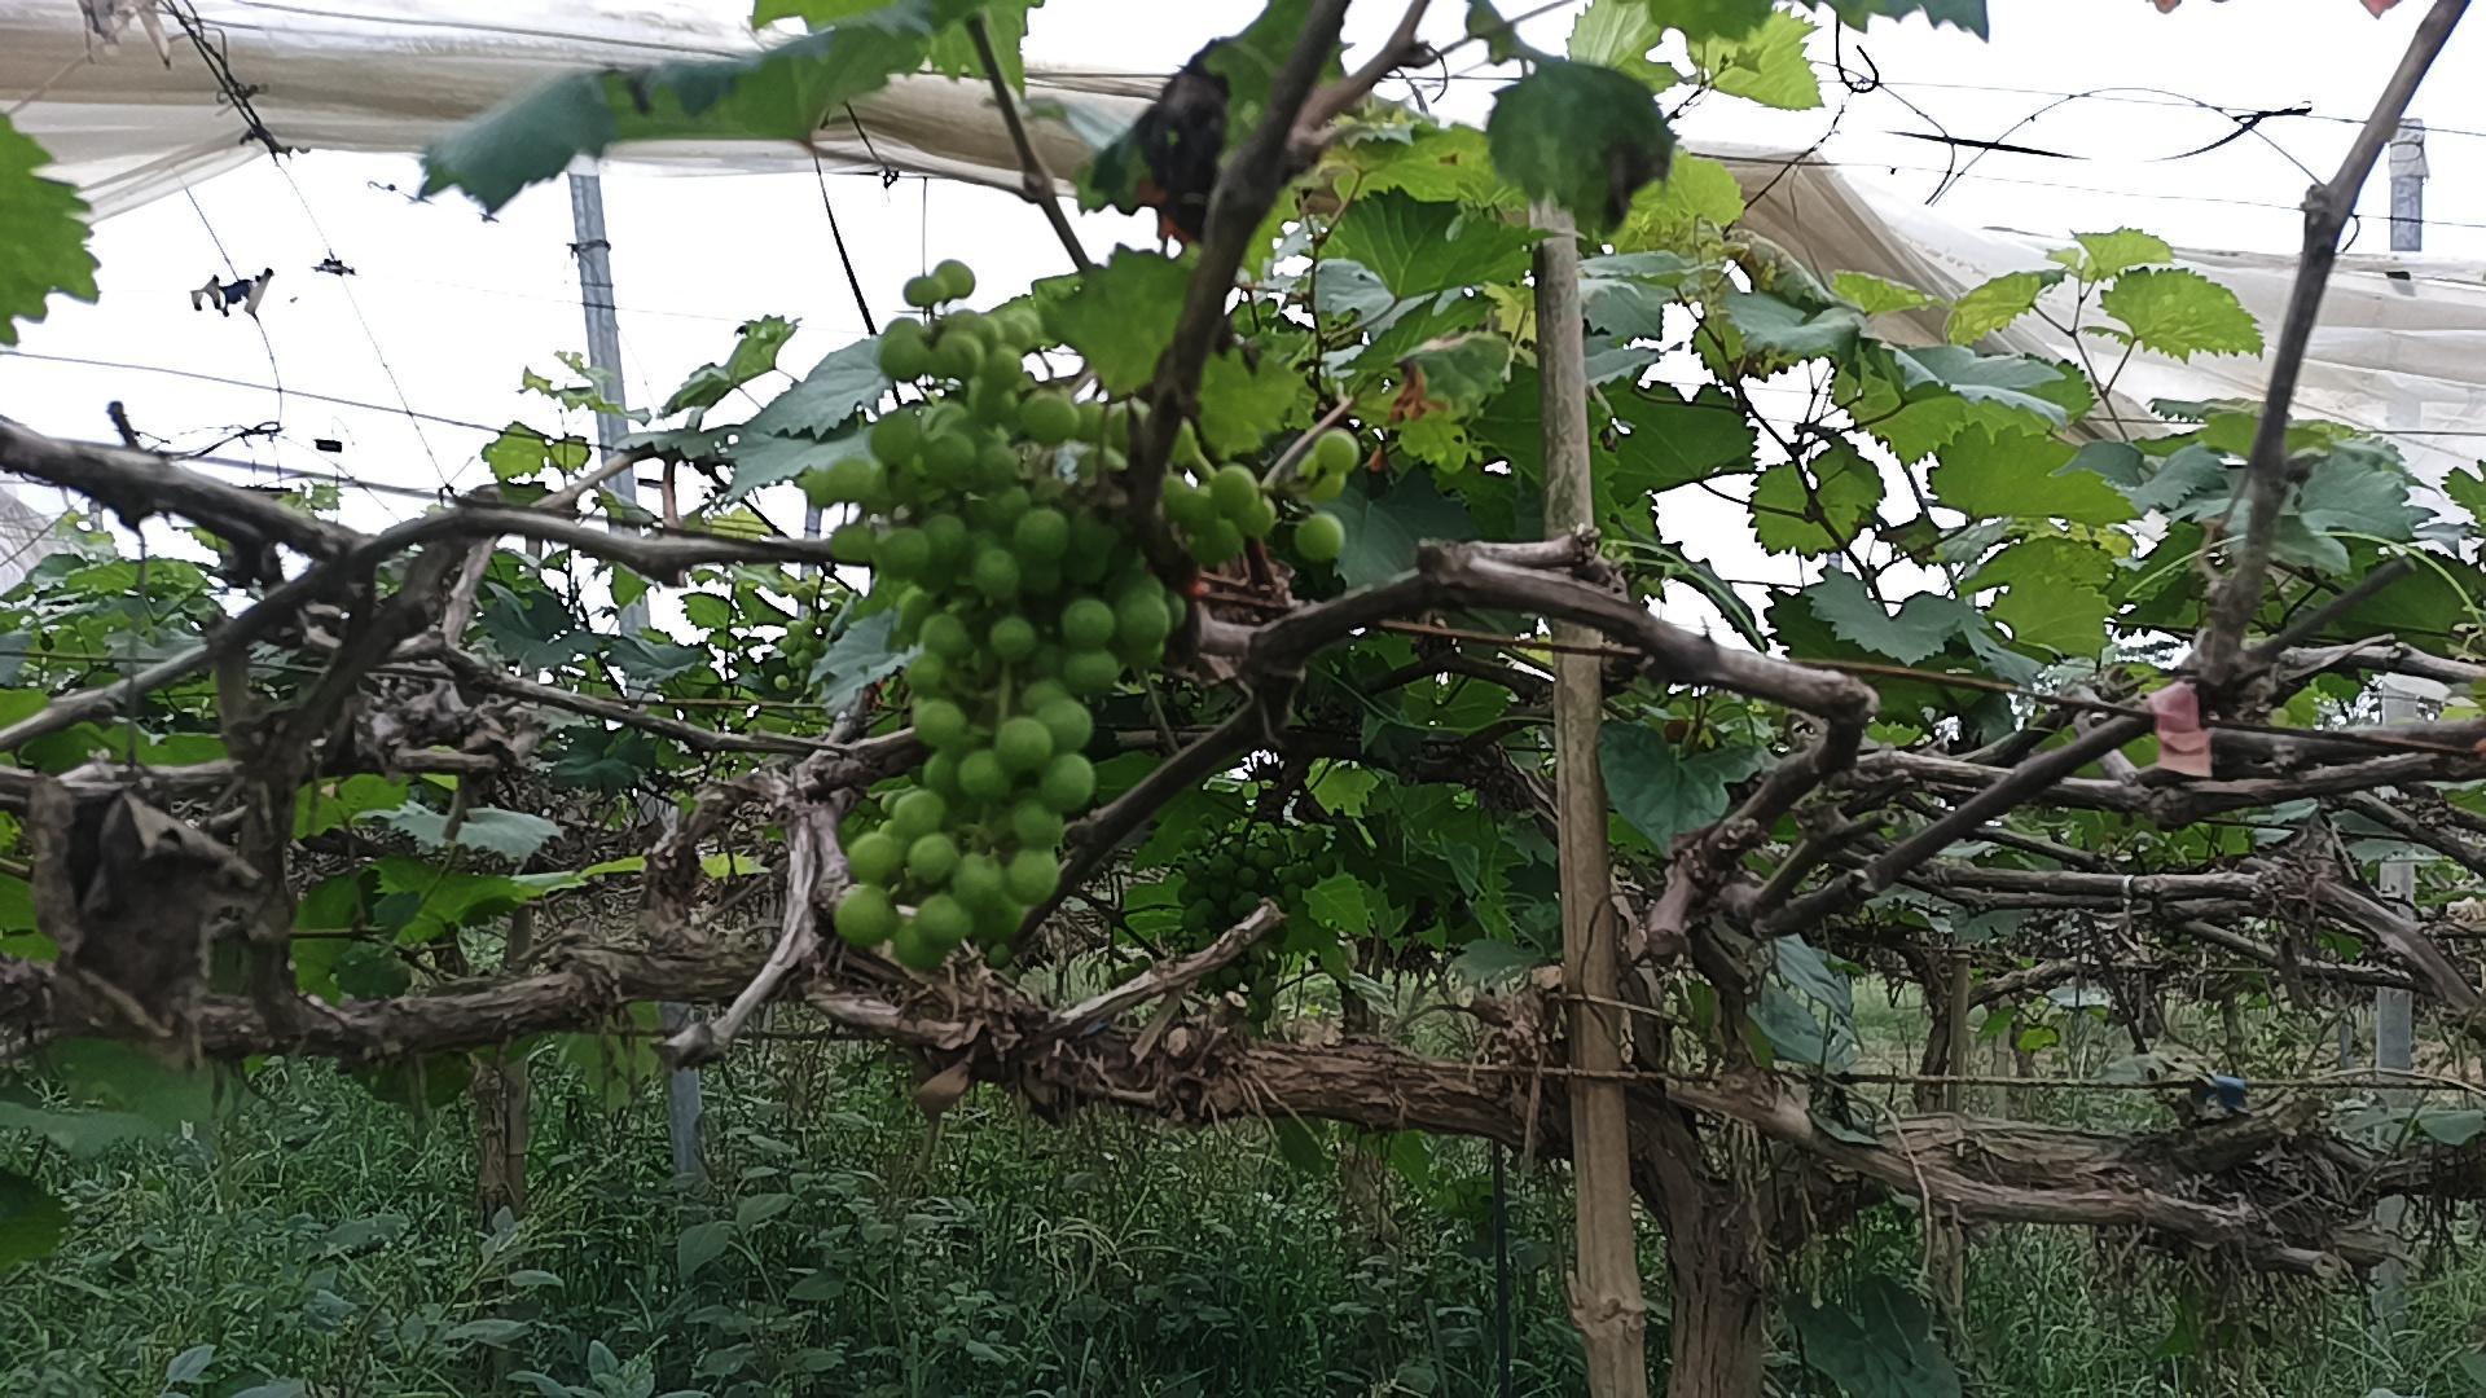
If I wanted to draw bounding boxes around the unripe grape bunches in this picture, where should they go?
[811,303,1358,968]
[906,263,972,304]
